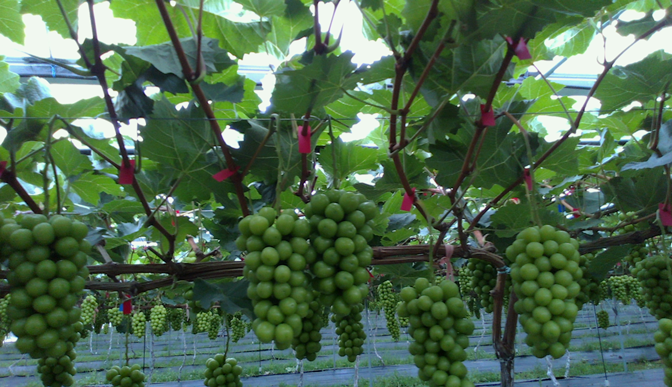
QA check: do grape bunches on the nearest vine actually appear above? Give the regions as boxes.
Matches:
[397,278,475,386]
[302,189,376,318]
[505,225,583,360]
[235,206,313,350]
[1,213,92,360]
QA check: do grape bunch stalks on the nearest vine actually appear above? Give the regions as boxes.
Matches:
[240,113,283,217]
[40,114,59,217]
[504,112,542,228]
[416,200,436,285]
[327,116,338,189]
